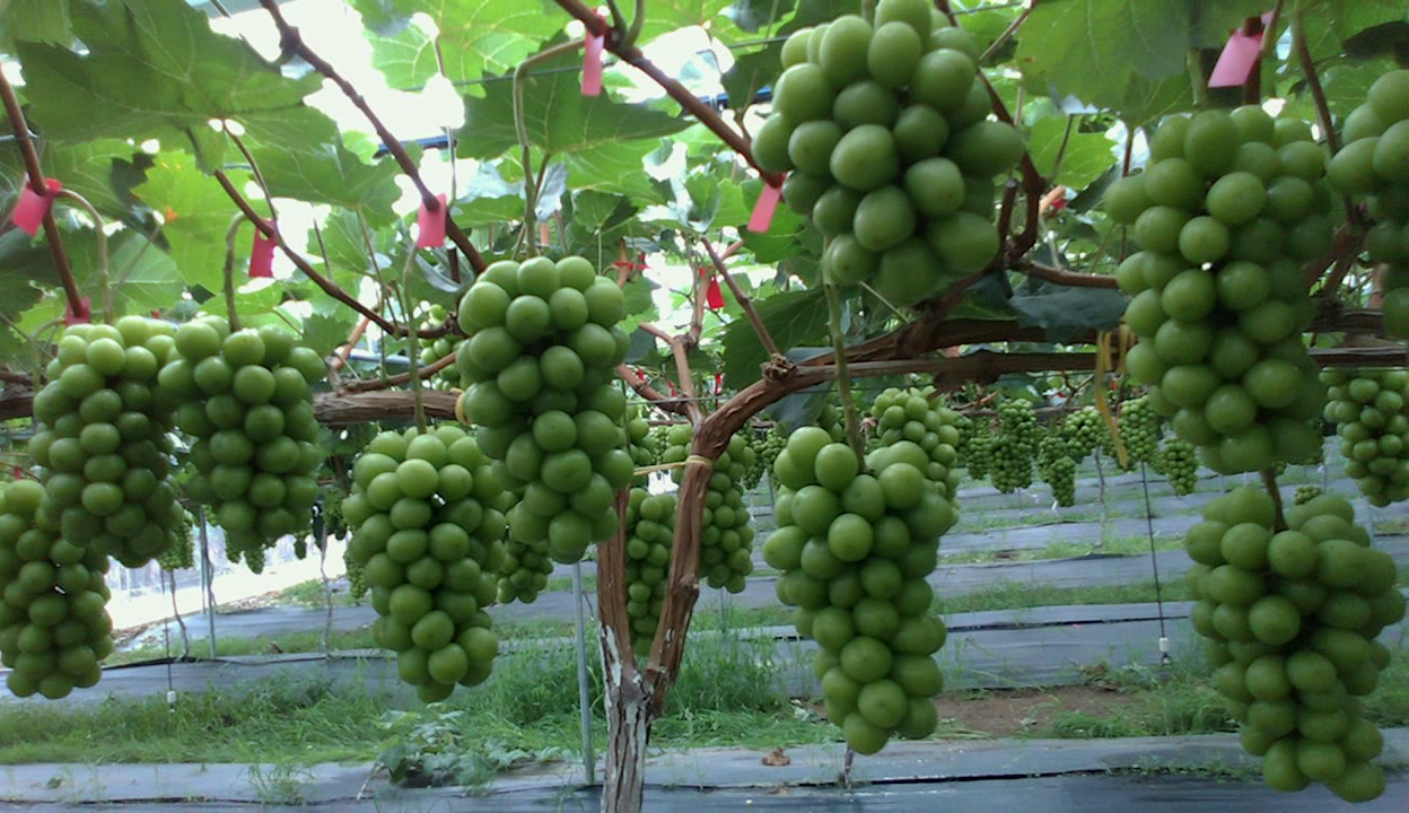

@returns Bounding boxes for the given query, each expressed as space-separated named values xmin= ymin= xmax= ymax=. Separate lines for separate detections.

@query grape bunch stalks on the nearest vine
xmin=1263 ymin=472 xmax=1286 ymax=533
xmin=1189 ymin=52 xmax=1208 ymax=106
xmin=823 ymin=276 xmax=867 ymax=470
xmin=28 ymin=315 xmax=63 ymax=392
xmin=861 ymin=0 xmax=875 ymax=20
xmin=222 ymin=210 xmax=245 ymax=332
xmin=514 ymin=38 xmax=584 ymax=257
xmin=403 ymin=247 xmax=426 ymax=432
xmin=61 ymin=191 xmax=112 ymax=322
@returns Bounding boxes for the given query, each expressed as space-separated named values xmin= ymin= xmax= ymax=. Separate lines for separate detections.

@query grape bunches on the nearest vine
xmin=763 ymin=427 xmax=951 ymax=758
xmin=340 ymin=428 xmax=510 ymax=703
xmin=1183 ymin=486 xmax=1406 ymax=803
xmin=749 ymin=0 xmax=1024 ymax=307
xmin=0 ymin=478 xmax=113 ymax=699
xmin=458 ymin=257 xmax=633 ymax=567
xmin=27 ymin=314 xmax=183 ymax=569
xmin=1103 ymin=104 xmax=1334 ymax=479
xmin=158 ymin=315 xmax=325 ymax=553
